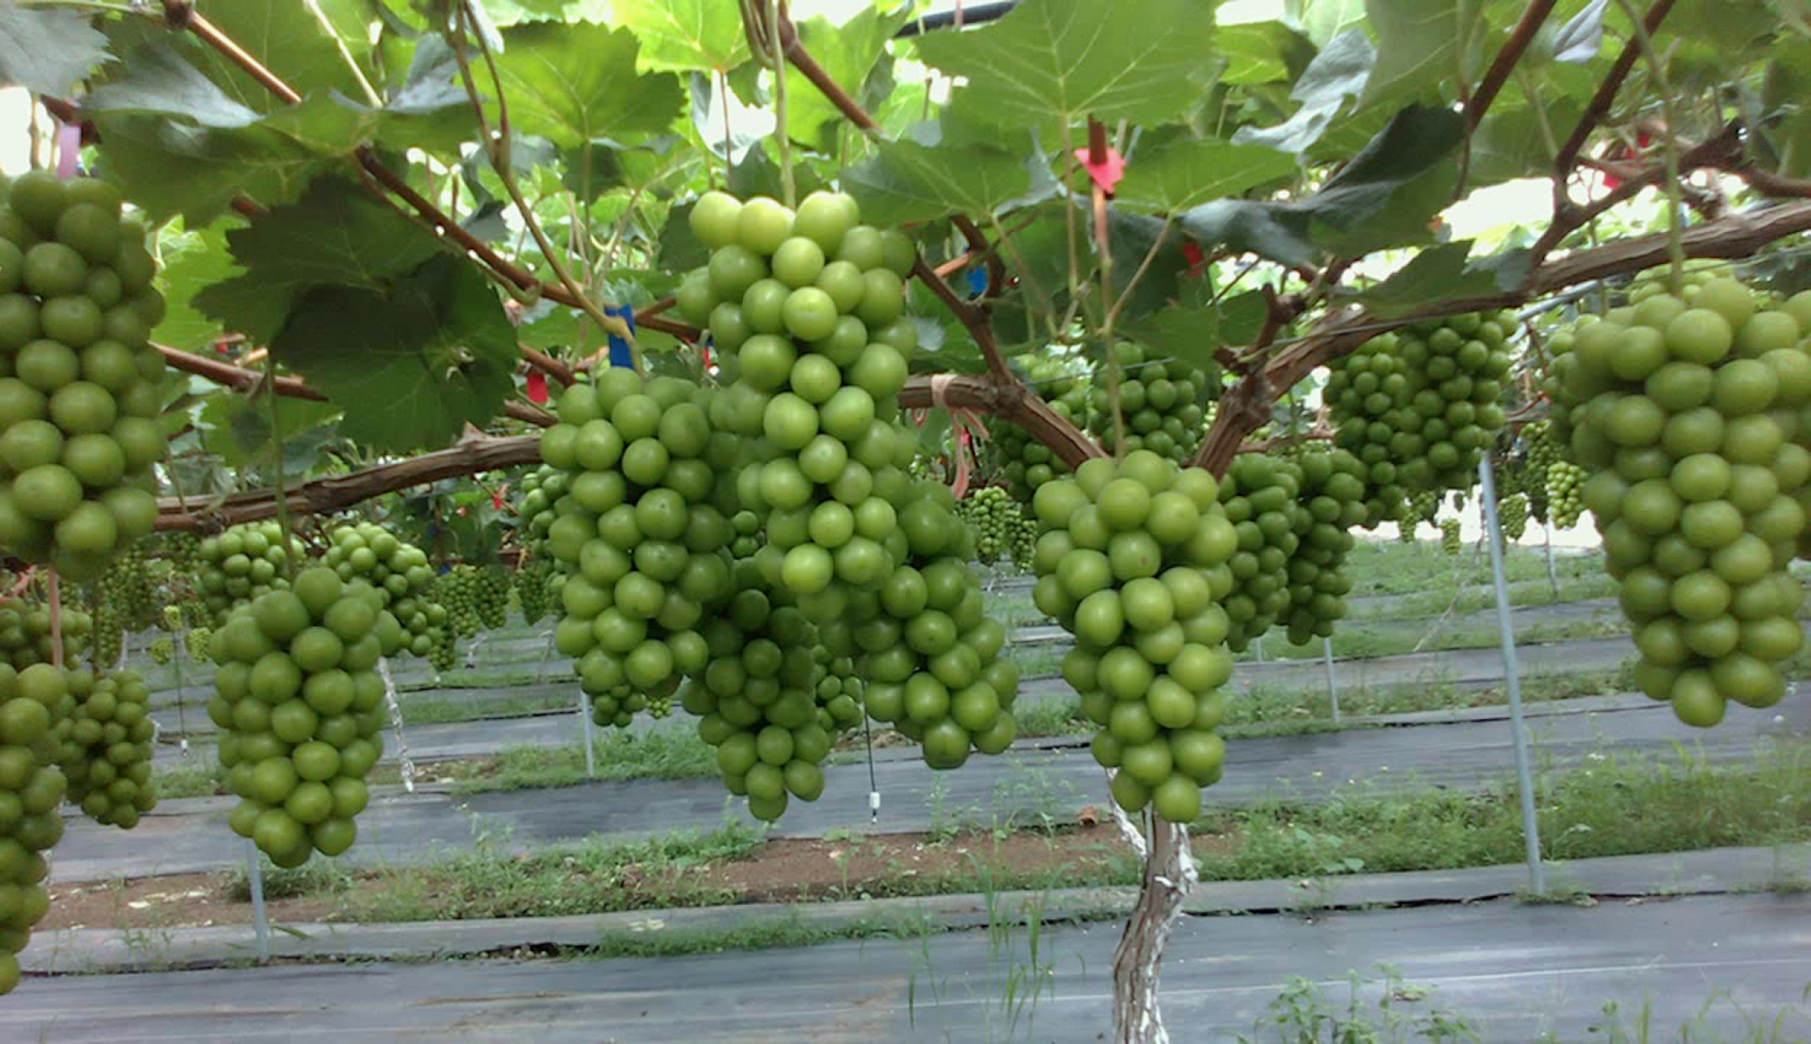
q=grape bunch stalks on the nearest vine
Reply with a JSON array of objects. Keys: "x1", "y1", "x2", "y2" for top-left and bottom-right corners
[
  {"x1": 766, "y1": 0, "x2": 795, "y2": 212},
  {"x1": 1090, "y1": 181, "x2": 1125, "y2": 467},
  {"x1": 266, "y1": 371, "x2": 297, "y2": 577},
  {"x1": 1618, "y1": 0, "x2": 1683, "y2": 300},
  {"x1": 445, "y1": 39, "x2": 647, "y2": 381}
]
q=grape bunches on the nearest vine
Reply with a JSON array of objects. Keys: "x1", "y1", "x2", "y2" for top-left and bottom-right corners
[
  {"x1": 205, "y1": 568, "x2": 401, "y2": 870},
  {"x1": 1551, "y1": 277, "x2": 1808, "y2": 729},
  {"x1": 679, "y1": 558, "x2": 830, "y2": 822},
  {"x1": 1030, "y1": 448, "x2": 1238, "y2": 822},
  {"x1": 0, "y1": 170, "x2": 167, "y2": 586},
  {"x1": 675, "y1": 188, "x2": 917, "y2": 621},
  {"x1": 818, "y1": 480, "x2": 1022, "y2": 770},
  {"x1": 540, "y1": 365, "x2": 742, "y2": 702}
]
